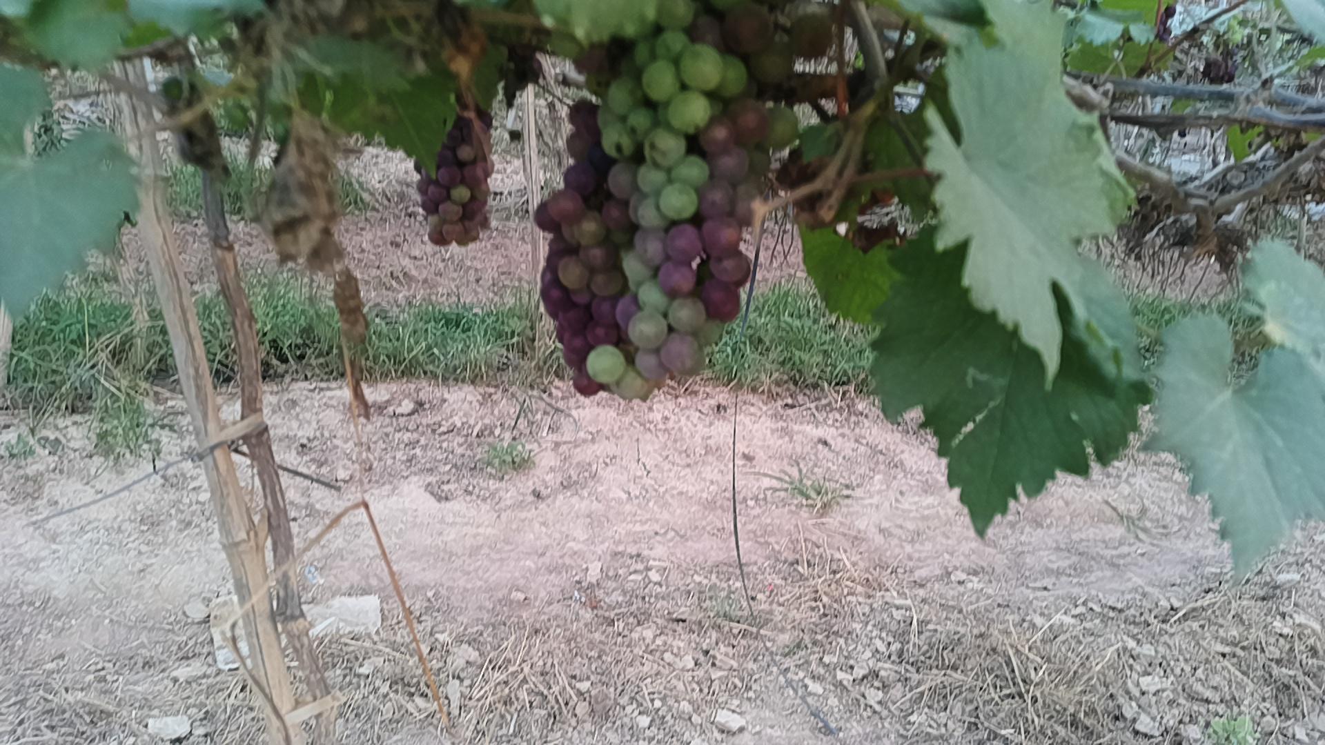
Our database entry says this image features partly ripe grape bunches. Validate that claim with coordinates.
[535,0,834,400]
[414,91,493,246]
